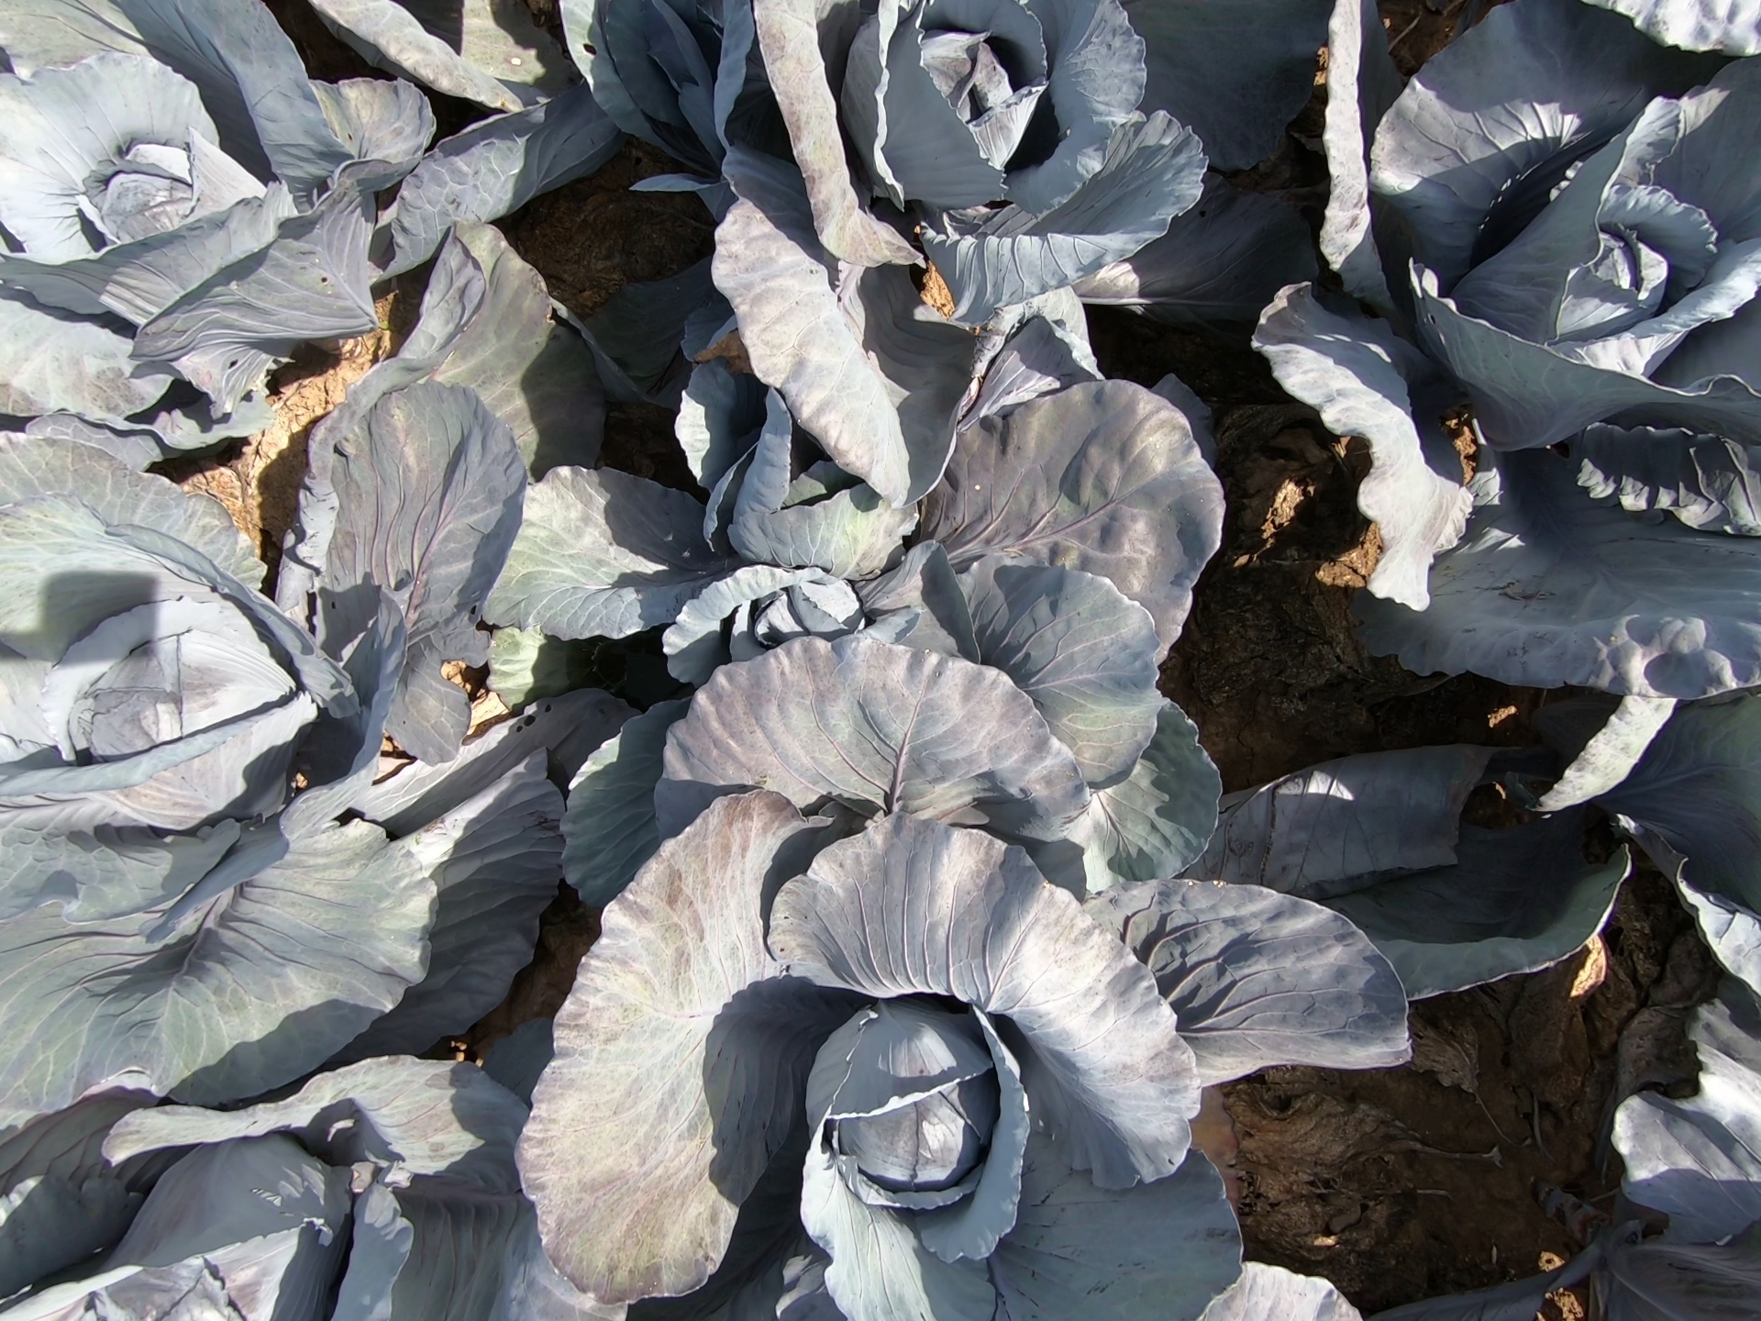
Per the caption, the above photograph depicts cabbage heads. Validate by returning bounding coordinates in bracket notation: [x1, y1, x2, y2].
[68, 629, 297, 812]
[743, 573, 864, 657]
[1495, 228, 1670, 393]
[879, 27, 1026, 198]
[99, 1138, 342, 1318]
[826, 1010, 1002, 1206]
[99, 142, 264, 269]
